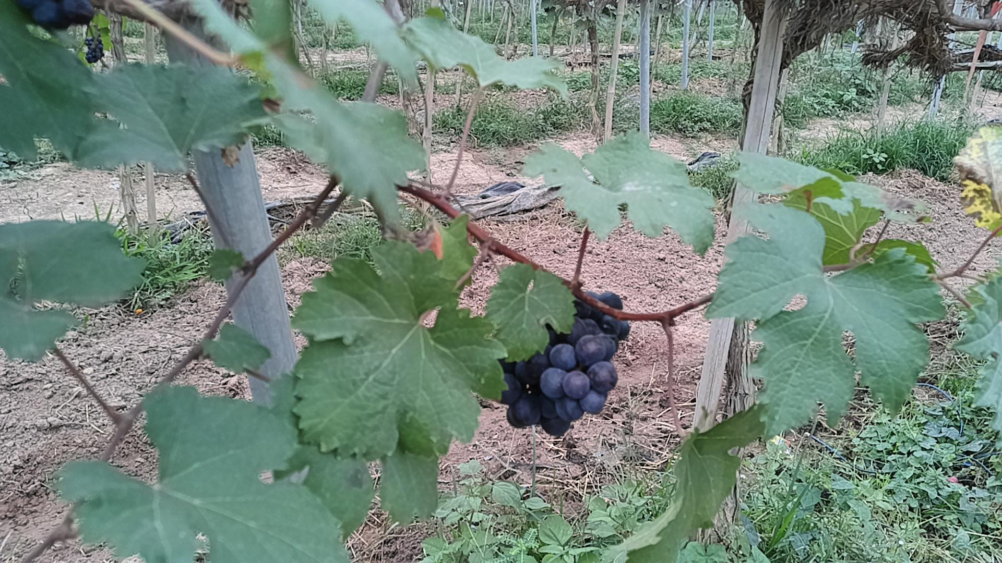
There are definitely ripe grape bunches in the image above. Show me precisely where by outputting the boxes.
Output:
[500,290,630,437]
[14,0,95,31]
[81,34,108,67]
